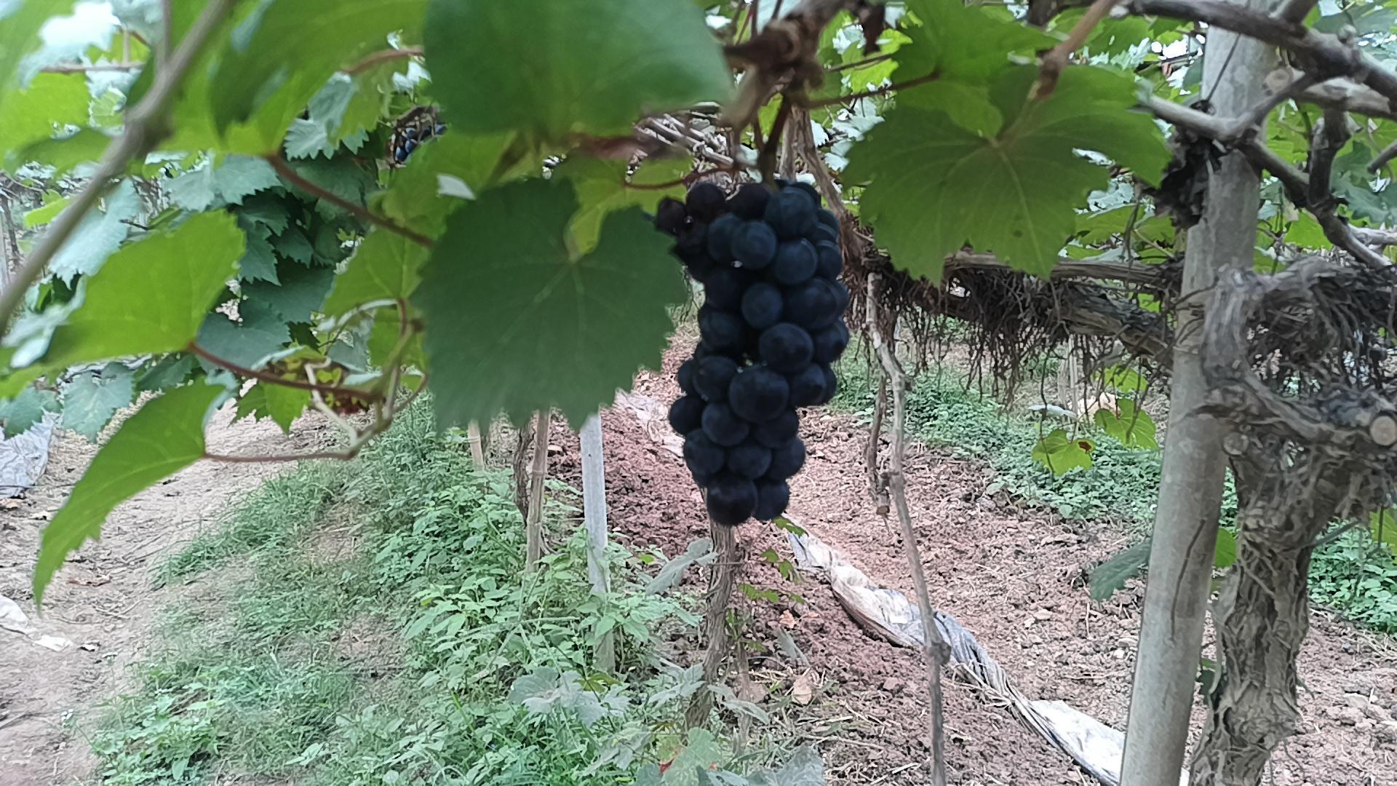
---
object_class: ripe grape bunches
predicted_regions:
[389,105,445,168]
[656,182,849,525]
